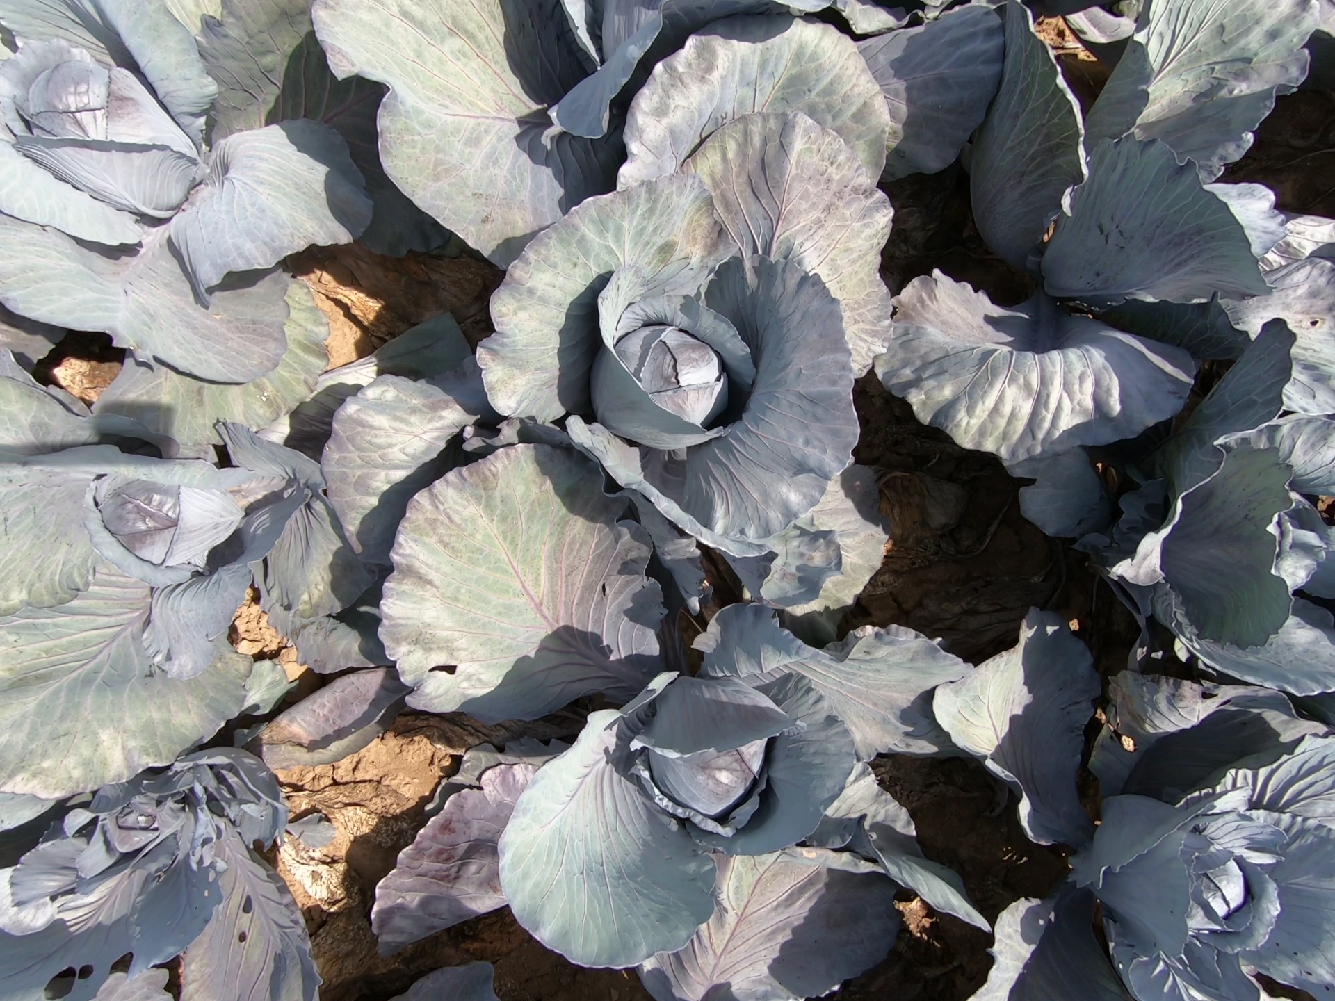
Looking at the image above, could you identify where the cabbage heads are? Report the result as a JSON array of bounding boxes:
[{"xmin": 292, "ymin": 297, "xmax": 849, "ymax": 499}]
[
  {"xmin": 1200, "ymin": 506, "xmax": 1284, "ymax": 581},
  {"xmin": 1154, "ymin": 837, "xmax": 1247, "ymax": 930},
  {"xmin": 106, "ymin": 790, "xmax": 183, "ymax": 849},
  {"xmin": 94, "ymin": 463, "xmax": 221, "ymax": 567},
  {"xmin": 604, "ymin": 324, "xmax": 725, "ymax": 439},
  {"xmin": 649, "ymin": 695, "xmax": 768, "ymax": 820},
  {"xmin": 29, "ymin": 60, "xmax": 161, "ymax": 177}
]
